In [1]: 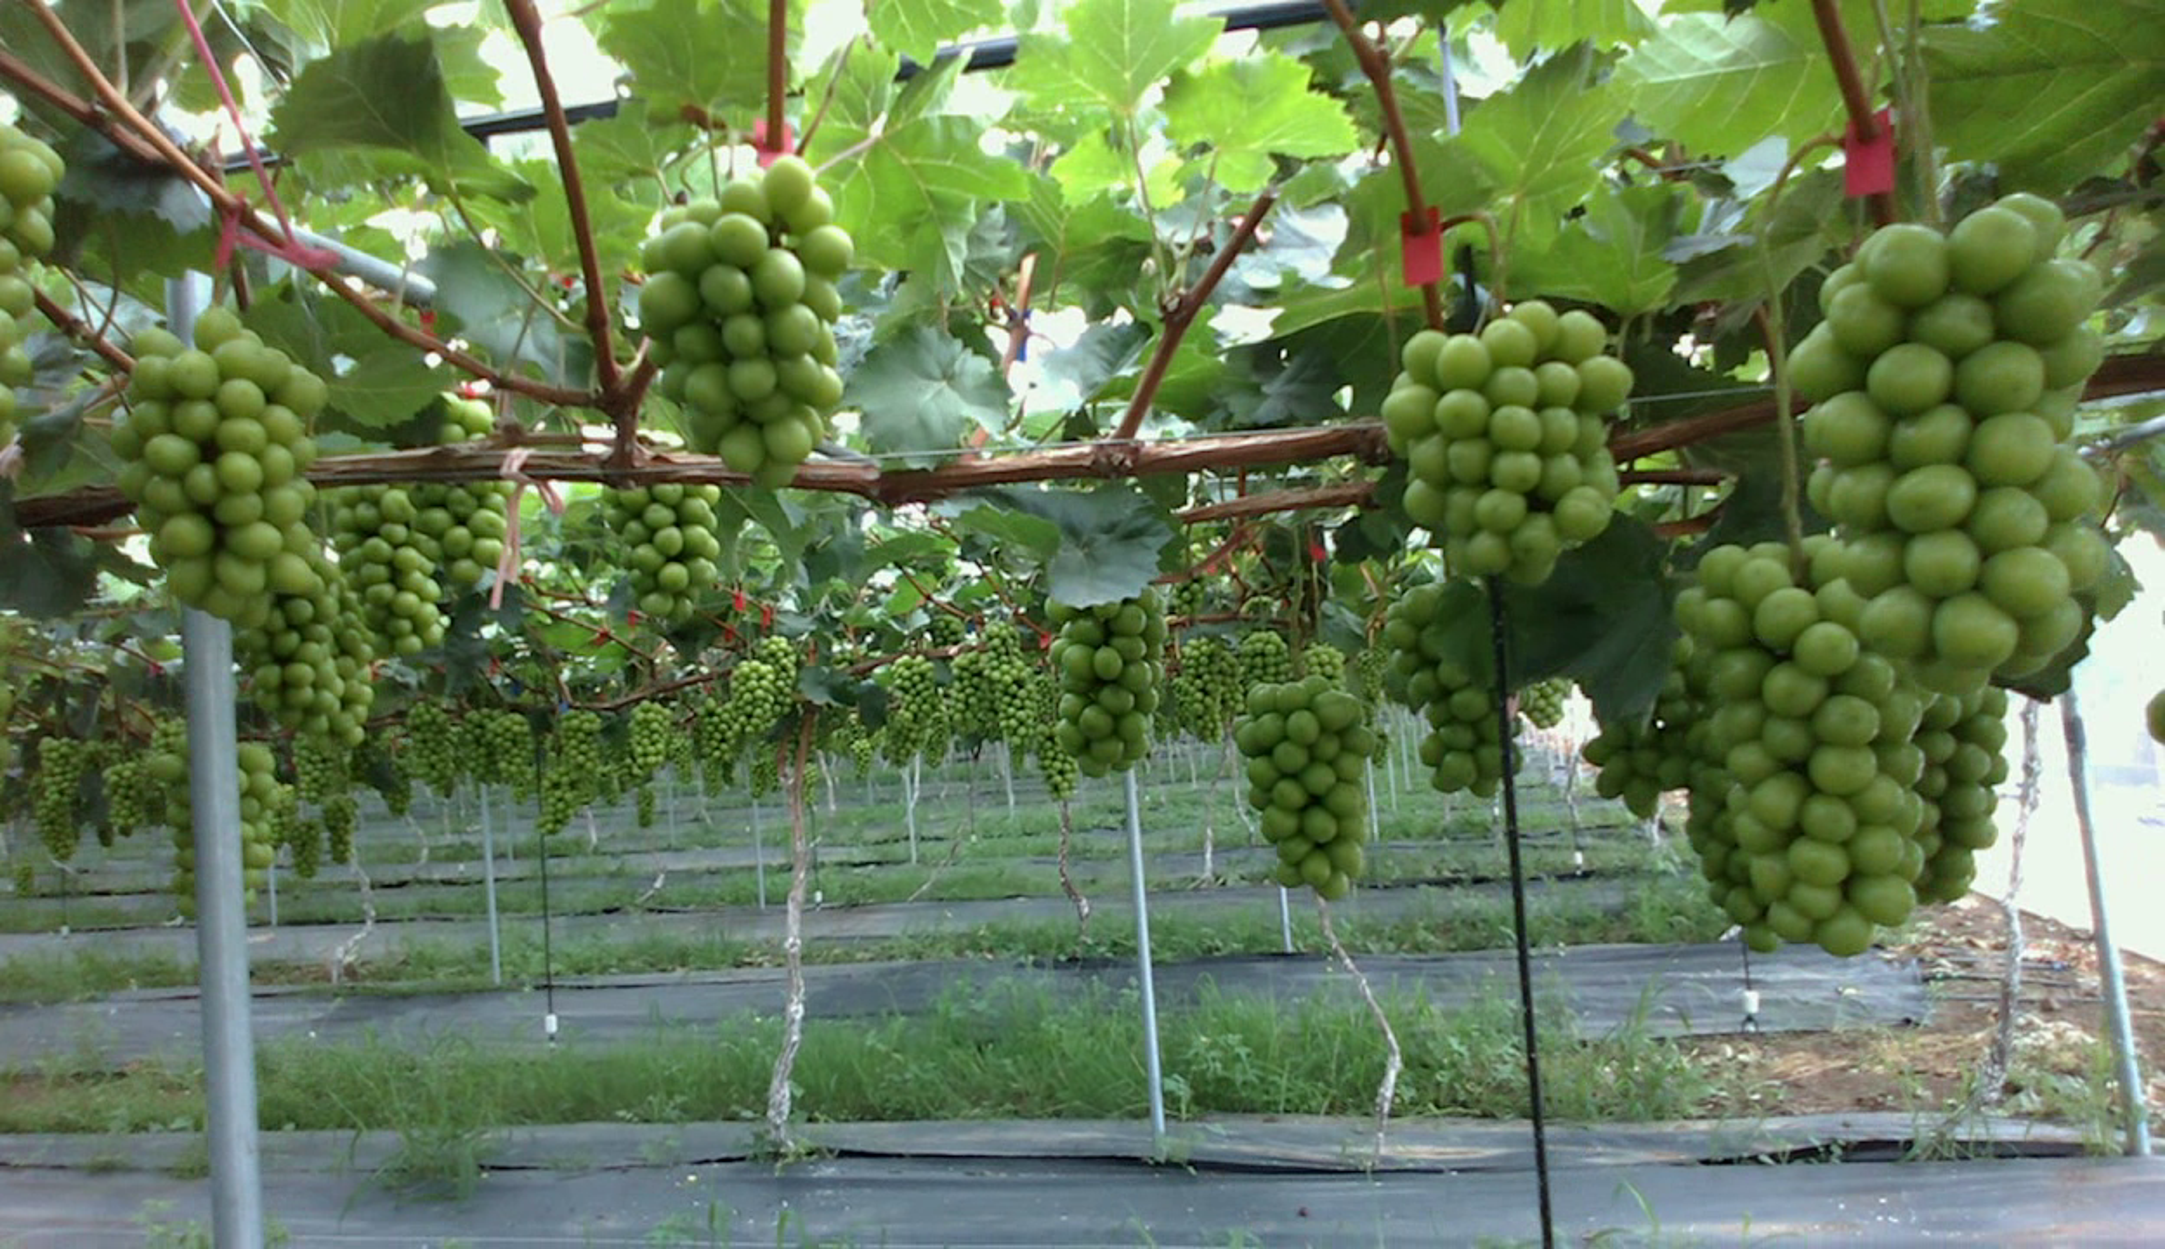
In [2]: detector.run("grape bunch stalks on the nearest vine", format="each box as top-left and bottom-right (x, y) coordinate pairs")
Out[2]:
(1442, 210), (1504, 317)
(1912, 59), (1941, 229)
(1757, 132), (1841, 590)
(212, 258), (231, 300)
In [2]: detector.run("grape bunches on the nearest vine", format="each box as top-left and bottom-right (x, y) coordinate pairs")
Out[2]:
(1381, 302), (1634, 588)
(638, 153), (854, 489)
(1790, 196), (2106, 699)
(1672, 533), (1926, 956)
(0, 128), (68, 446)
(108, 307), (333, 631)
